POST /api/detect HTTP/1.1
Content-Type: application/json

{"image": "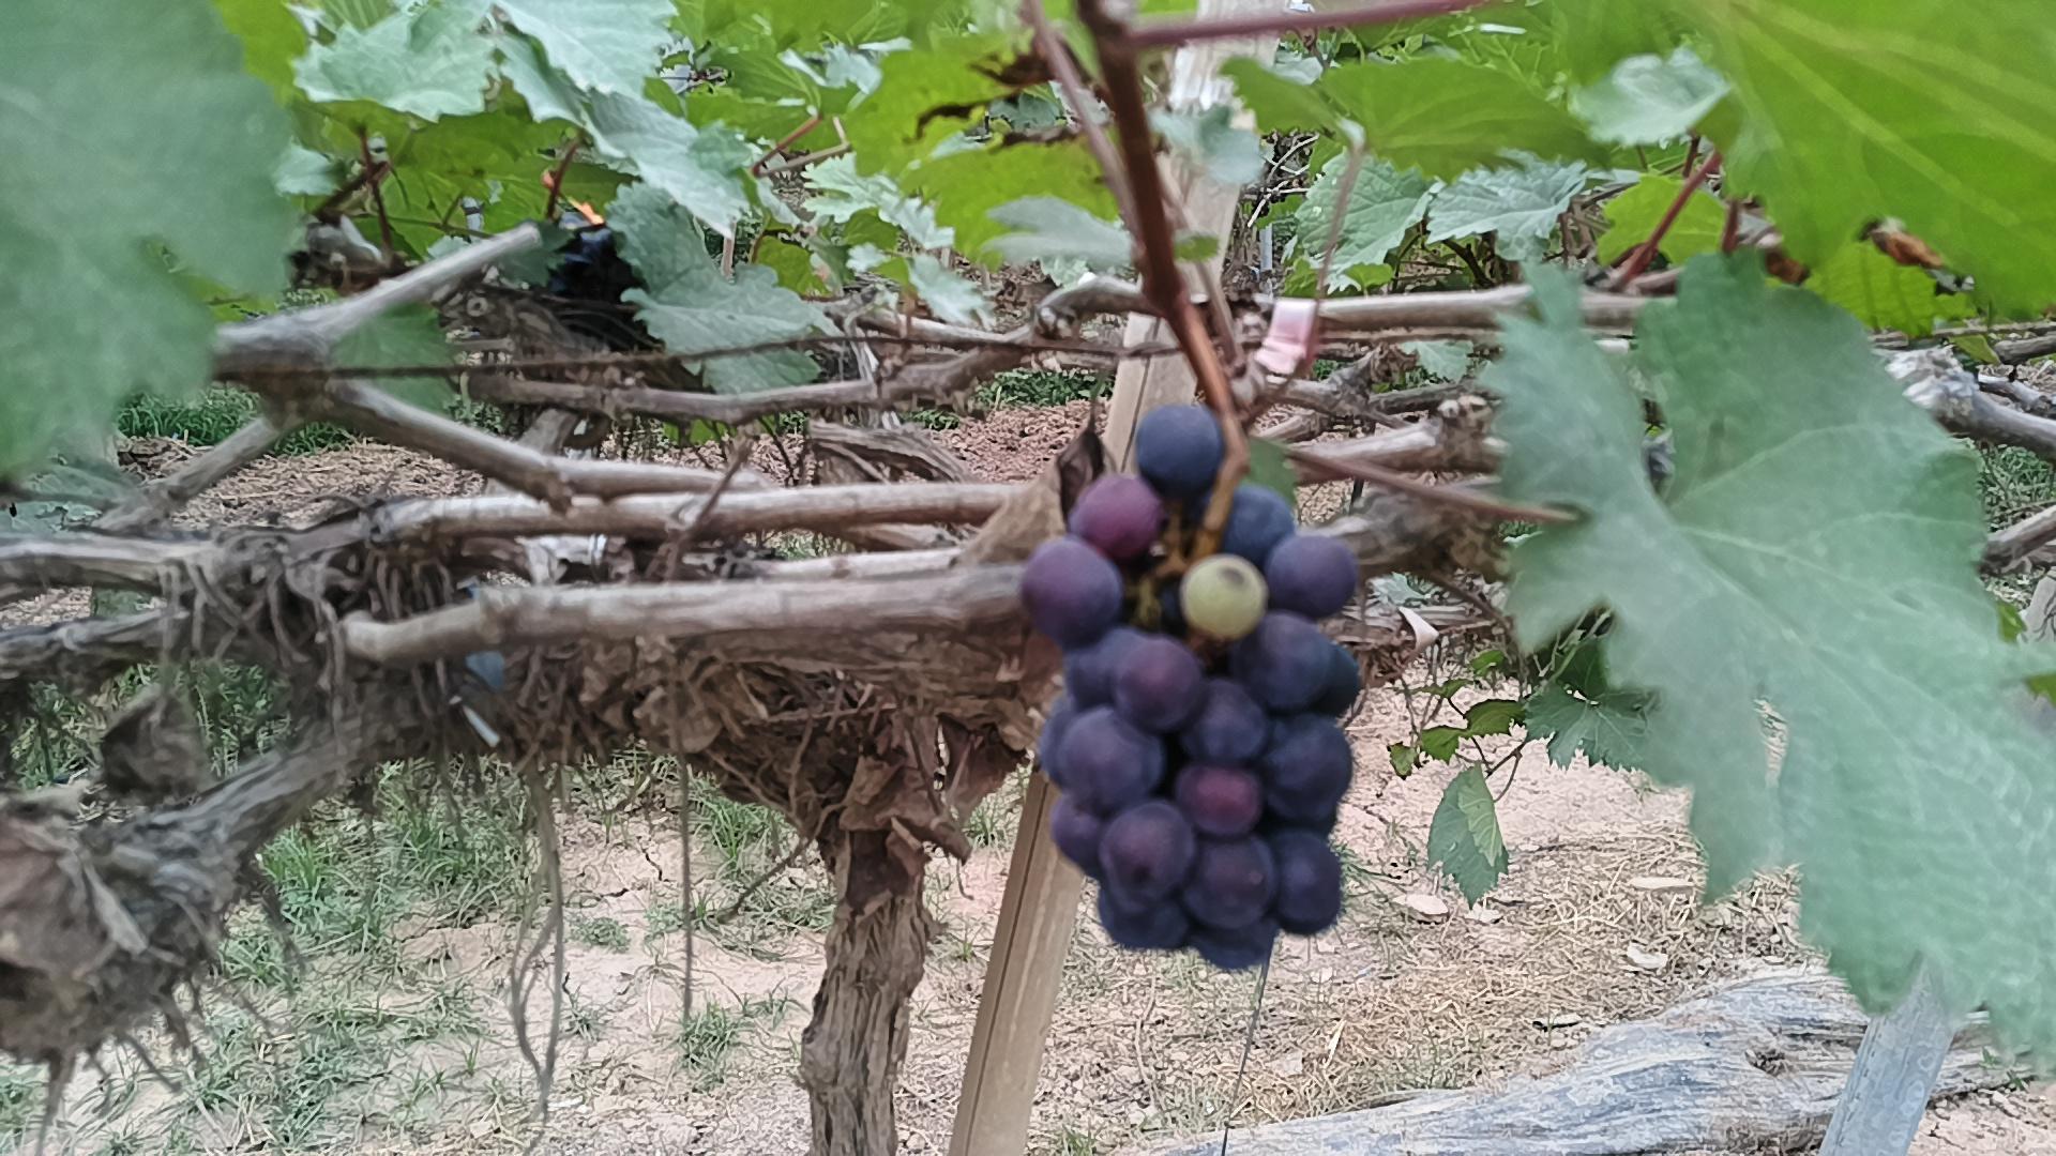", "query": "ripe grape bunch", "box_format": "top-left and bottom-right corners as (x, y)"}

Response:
top-left (1025, 405), bottom-right (1361, 969)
